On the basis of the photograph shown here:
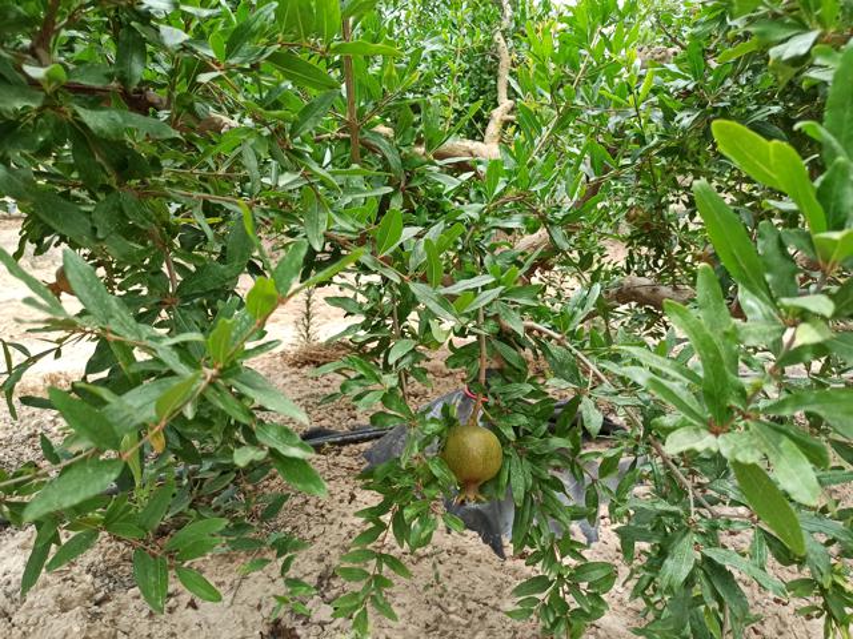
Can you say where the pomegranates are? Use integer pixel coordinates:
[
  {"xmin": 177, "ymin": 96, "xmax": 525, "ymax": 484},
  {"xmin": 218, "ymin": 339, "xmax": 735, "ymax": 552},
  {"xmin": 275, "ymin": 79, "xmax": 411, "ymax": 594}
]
[
  {"xmin": 41, "ymin": 265, "xmax": 76, "ymax": 304},
  {"xmin": 442, "ymin": 423, "xmax": 504, "ymax": 505}
]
